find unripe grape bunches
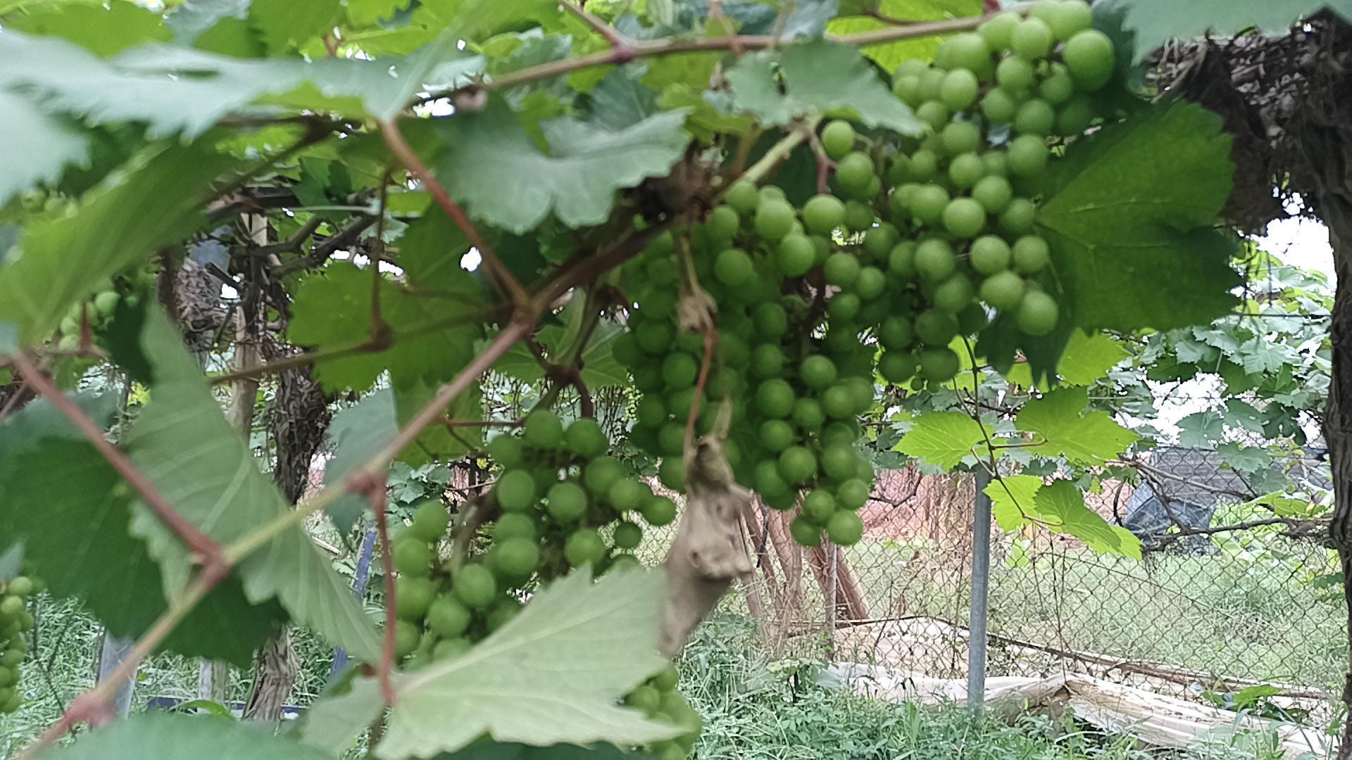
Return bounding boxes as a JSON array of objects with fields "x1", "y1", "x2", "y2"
[
  {"x1": 18, "y1": 181, "x2": 158, "y2": 349},
  {"x1": 613, "y1": 219, "x2": 751, "y2": 492},
  {"x1": 712, "y1": 179, "x2": 890, "y2": 547},
  {"x1": 383, "y1": 418, "x2": 703, "y2": 759},
  {"x1": 0, "y1": 559, "x2": 42, "y2": 712},
  {"x1": 907, "y1": 0, "x2": 1112, "y2": 343},
  {"x1": 820, "y1": 61, "x2": 989, "y2": 393}
]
